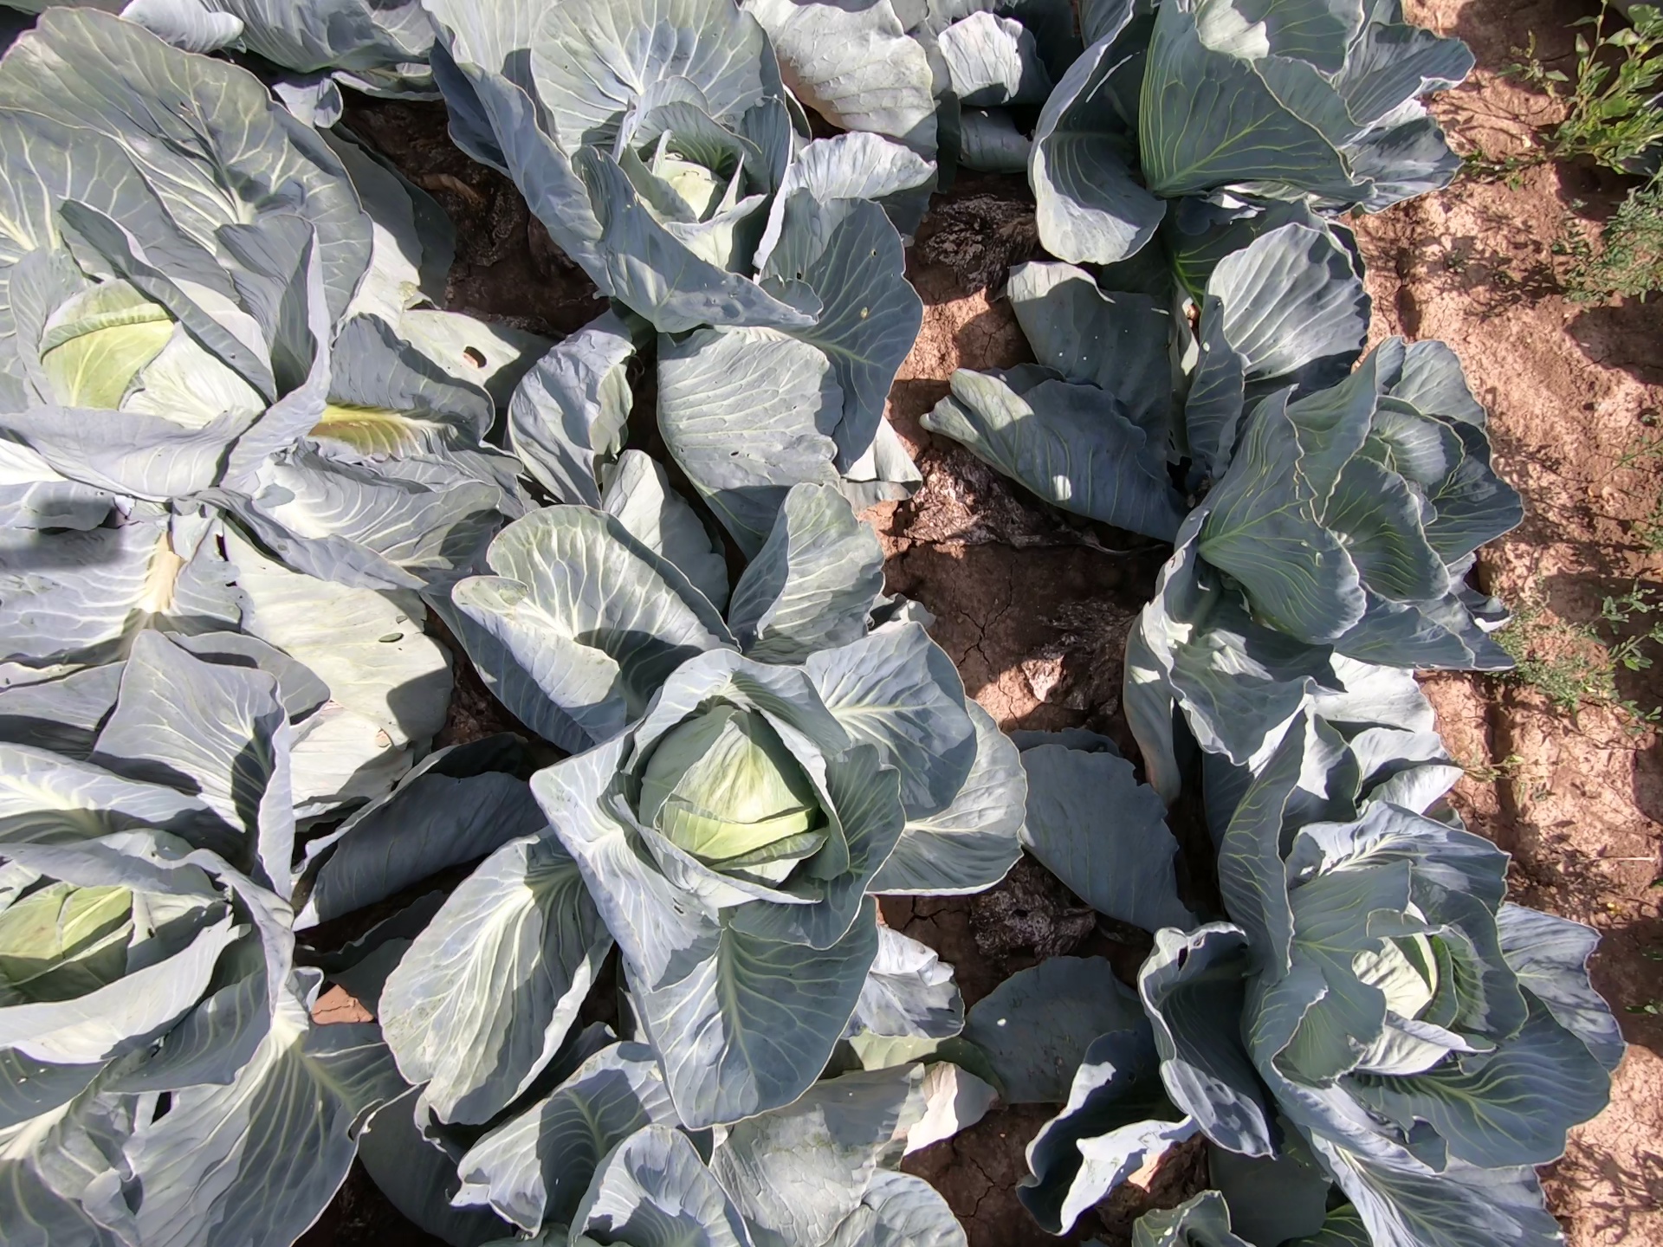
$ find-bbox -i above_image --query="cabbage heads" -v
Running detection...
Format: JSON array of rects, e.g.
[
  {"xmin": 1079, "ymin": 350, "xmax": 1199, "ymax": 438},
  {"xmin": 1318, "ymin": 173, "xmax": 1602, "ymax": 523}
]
[
  {"xmin": 642, "ymin": 709, "xmax": 828, "ymax": 908},
  {"xmin": 21, "ymin": 275, "xmax": 275, "ymax": 475},
  {"xmin": 1294, "ymin": 899, "xmax": 1447, "ymax": 1047},
  {"xmin": 3, "ymin": 853, "xmax": 219, "ymax": 1064},
  {"xmin": 605, "ymin": 158, "xmax": 752, "ymax": 319}
]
